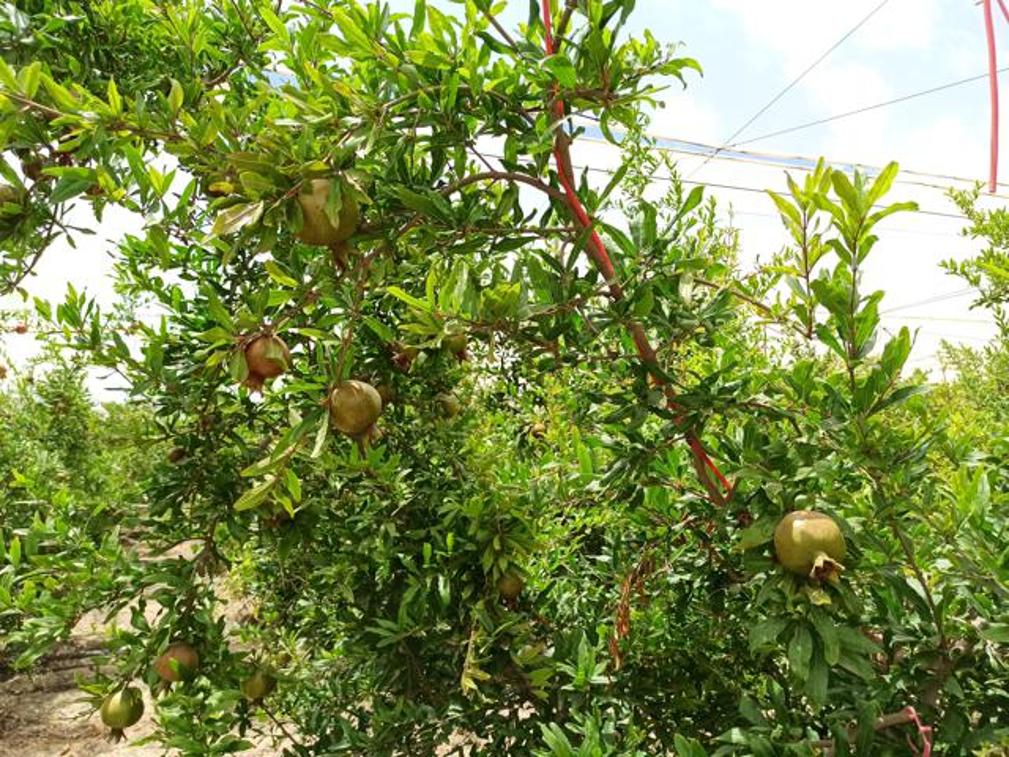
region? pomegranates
[153,643,200,695]
[244,670,277,707]
[451,334,470,361]
[774,509,847,585]
[443,399,462,420]
[167,448,188,462]
[295,178,359,270]
[497,574,523,610]
[99,689,145,744]
[19,153,49,181]
[530,423,547,438]
[274,651,292,669]
[241,334,292,393]
[391,347,419,372]
[330,378,388,446]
